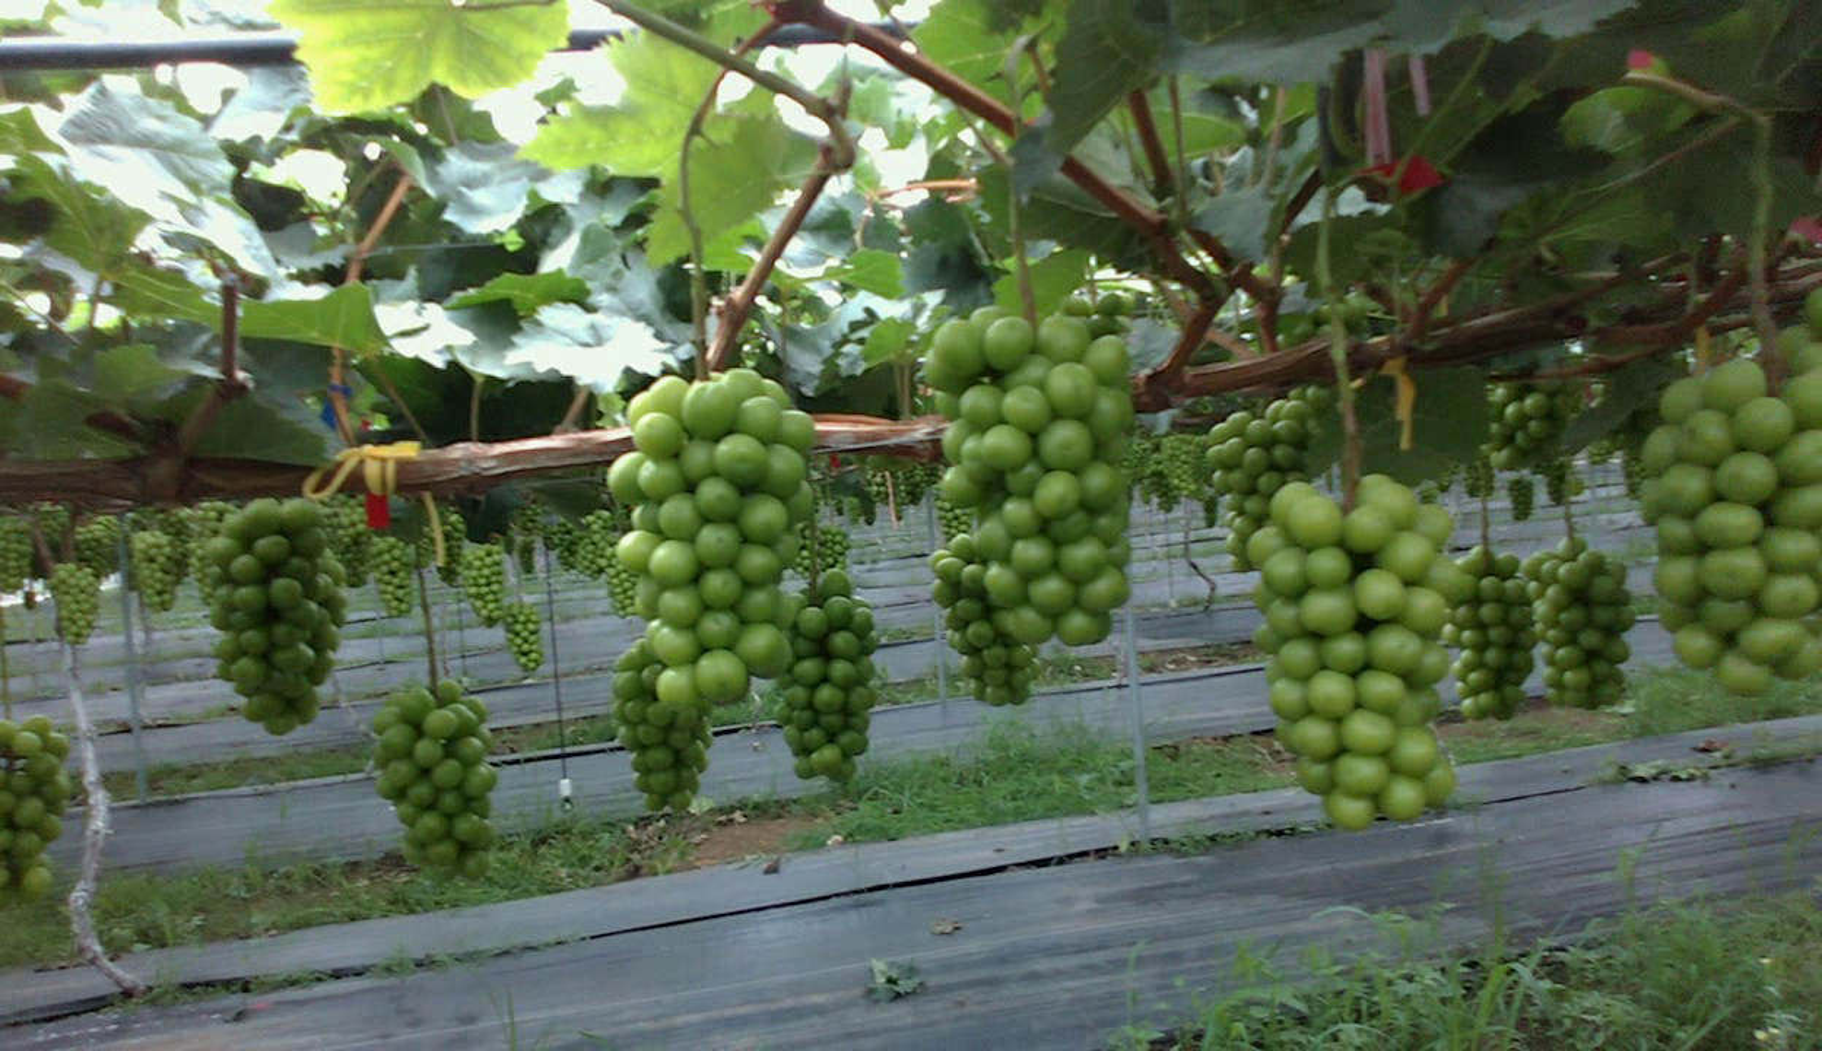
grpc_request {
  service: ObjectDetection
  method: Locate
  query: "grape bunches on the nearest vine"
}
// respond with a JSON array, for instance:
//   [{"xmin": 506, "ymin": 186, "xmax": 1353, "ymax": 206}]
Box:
[
  {"xmin": 923, "ymin": 293, "xmax": 1134, "ymax": 647},
  {"xmin": 1644, "ymin": 288, "xmax": 1821, "ymax": 698},
  {"xmin": 1244, "ymin": 474, "xmax": 1469, "ymax": 832},
  {"xmin": 604, "ymin": 368, "xmax": 816, "ymax": 708}
]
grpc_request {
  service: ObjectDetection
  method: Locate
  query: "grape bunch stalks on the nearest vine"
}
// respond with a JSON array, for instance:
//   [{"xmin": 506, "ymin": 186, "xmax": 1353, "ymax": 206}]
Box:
[
  {"xmin": 677, "ymin": 12, "xmax": 802, "ymax": 384},
  {"xmin": 1321, "ymin": 169, "xmax": 1377, "ymax": 515},
  {"xmin": 1615, "ymin": 72, "xmax": 1787, "ymax": 396},
  {"xmin": 1004, "ymin": 32, "xmax": 1051, "ymax": 331}
]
